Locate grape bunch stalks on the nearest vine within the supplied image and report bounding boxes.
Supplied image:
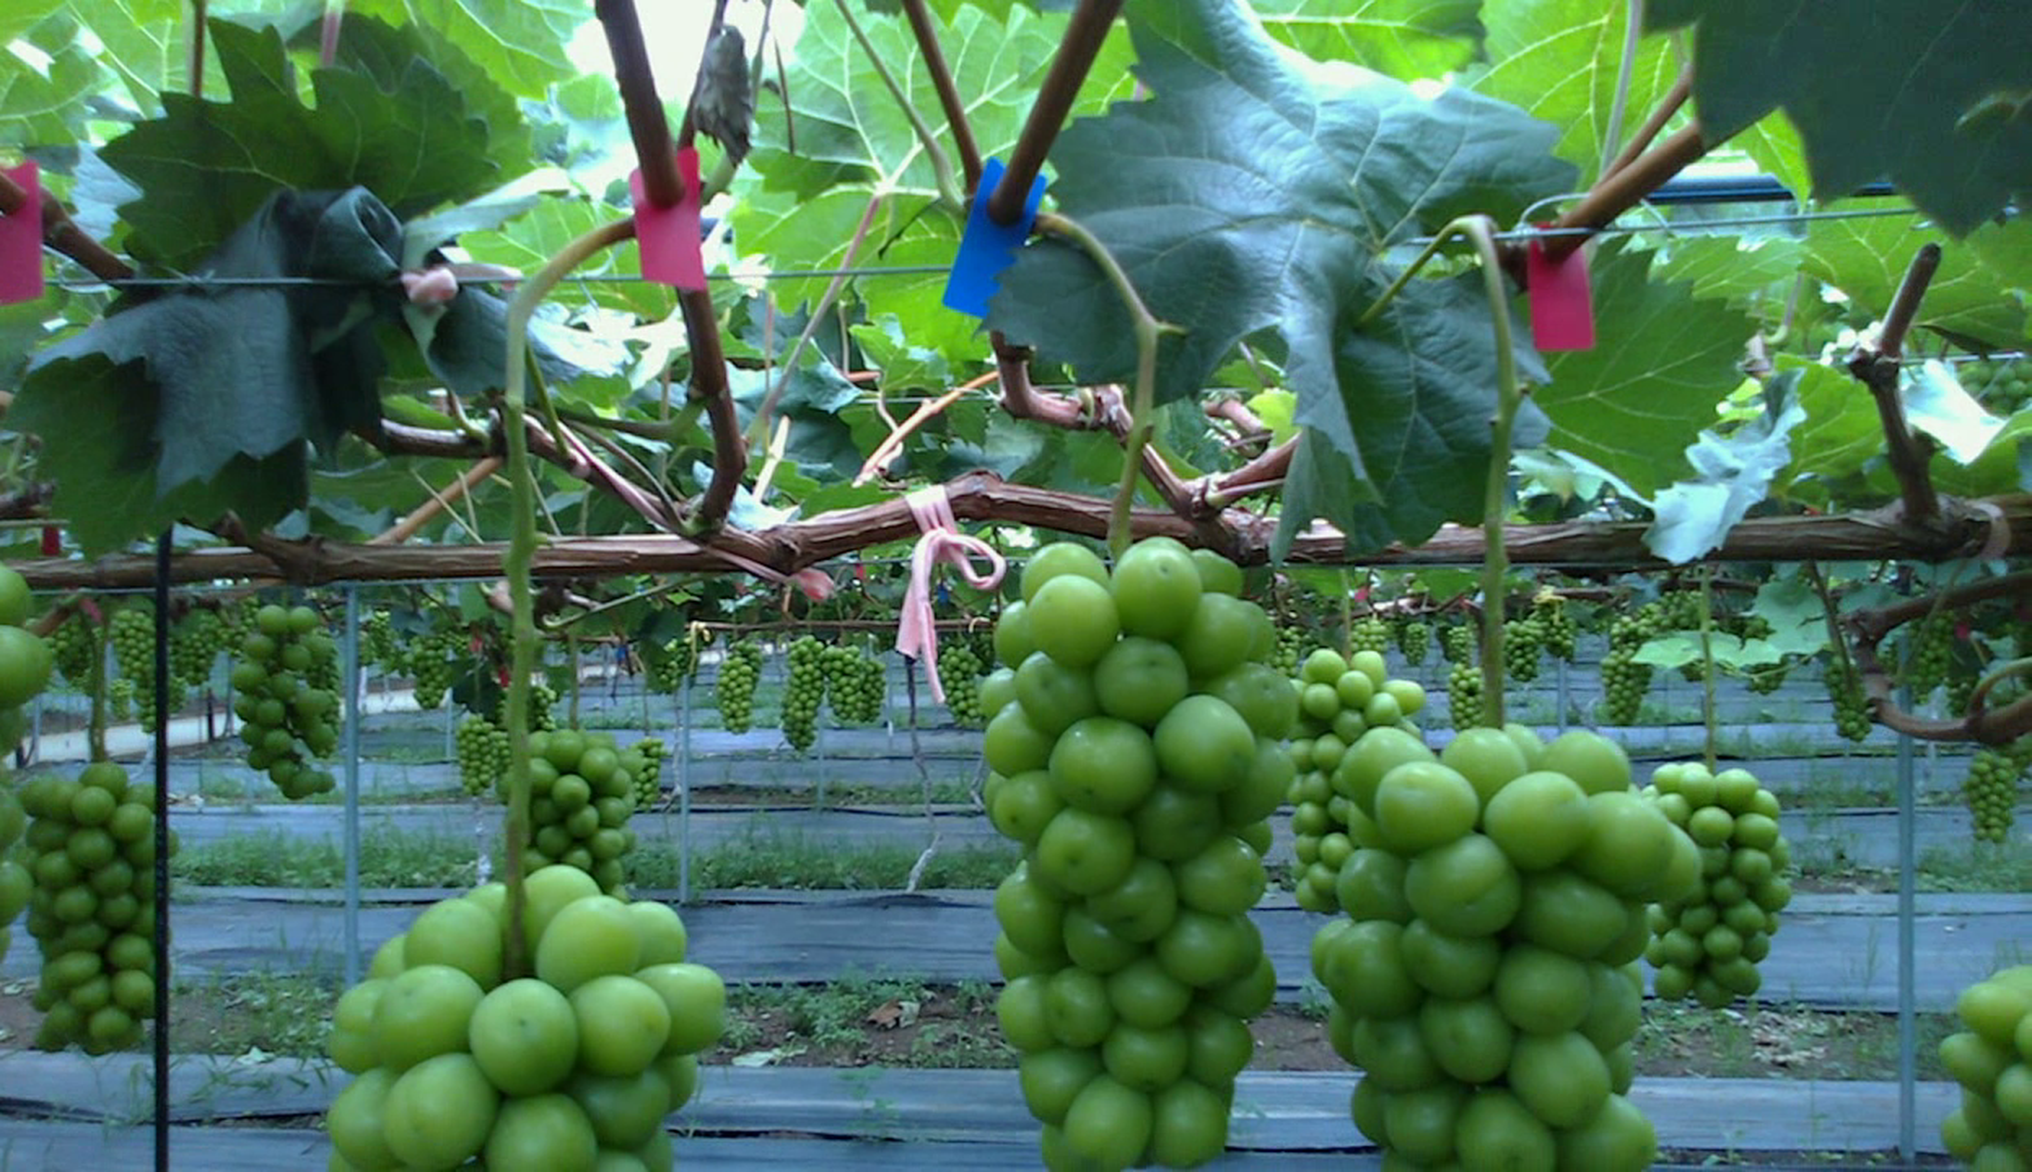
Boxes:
[1353,212,1531,731]
[1037,210,1161,565]
[500,213,637,978]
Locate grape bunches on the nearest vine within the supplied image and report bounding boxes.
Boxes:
[321,864,726,1169]
[979,537,1299,1170]
[0,560,50,951]
[1938,965,2030,1170]
[1306,723,1701,1167]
